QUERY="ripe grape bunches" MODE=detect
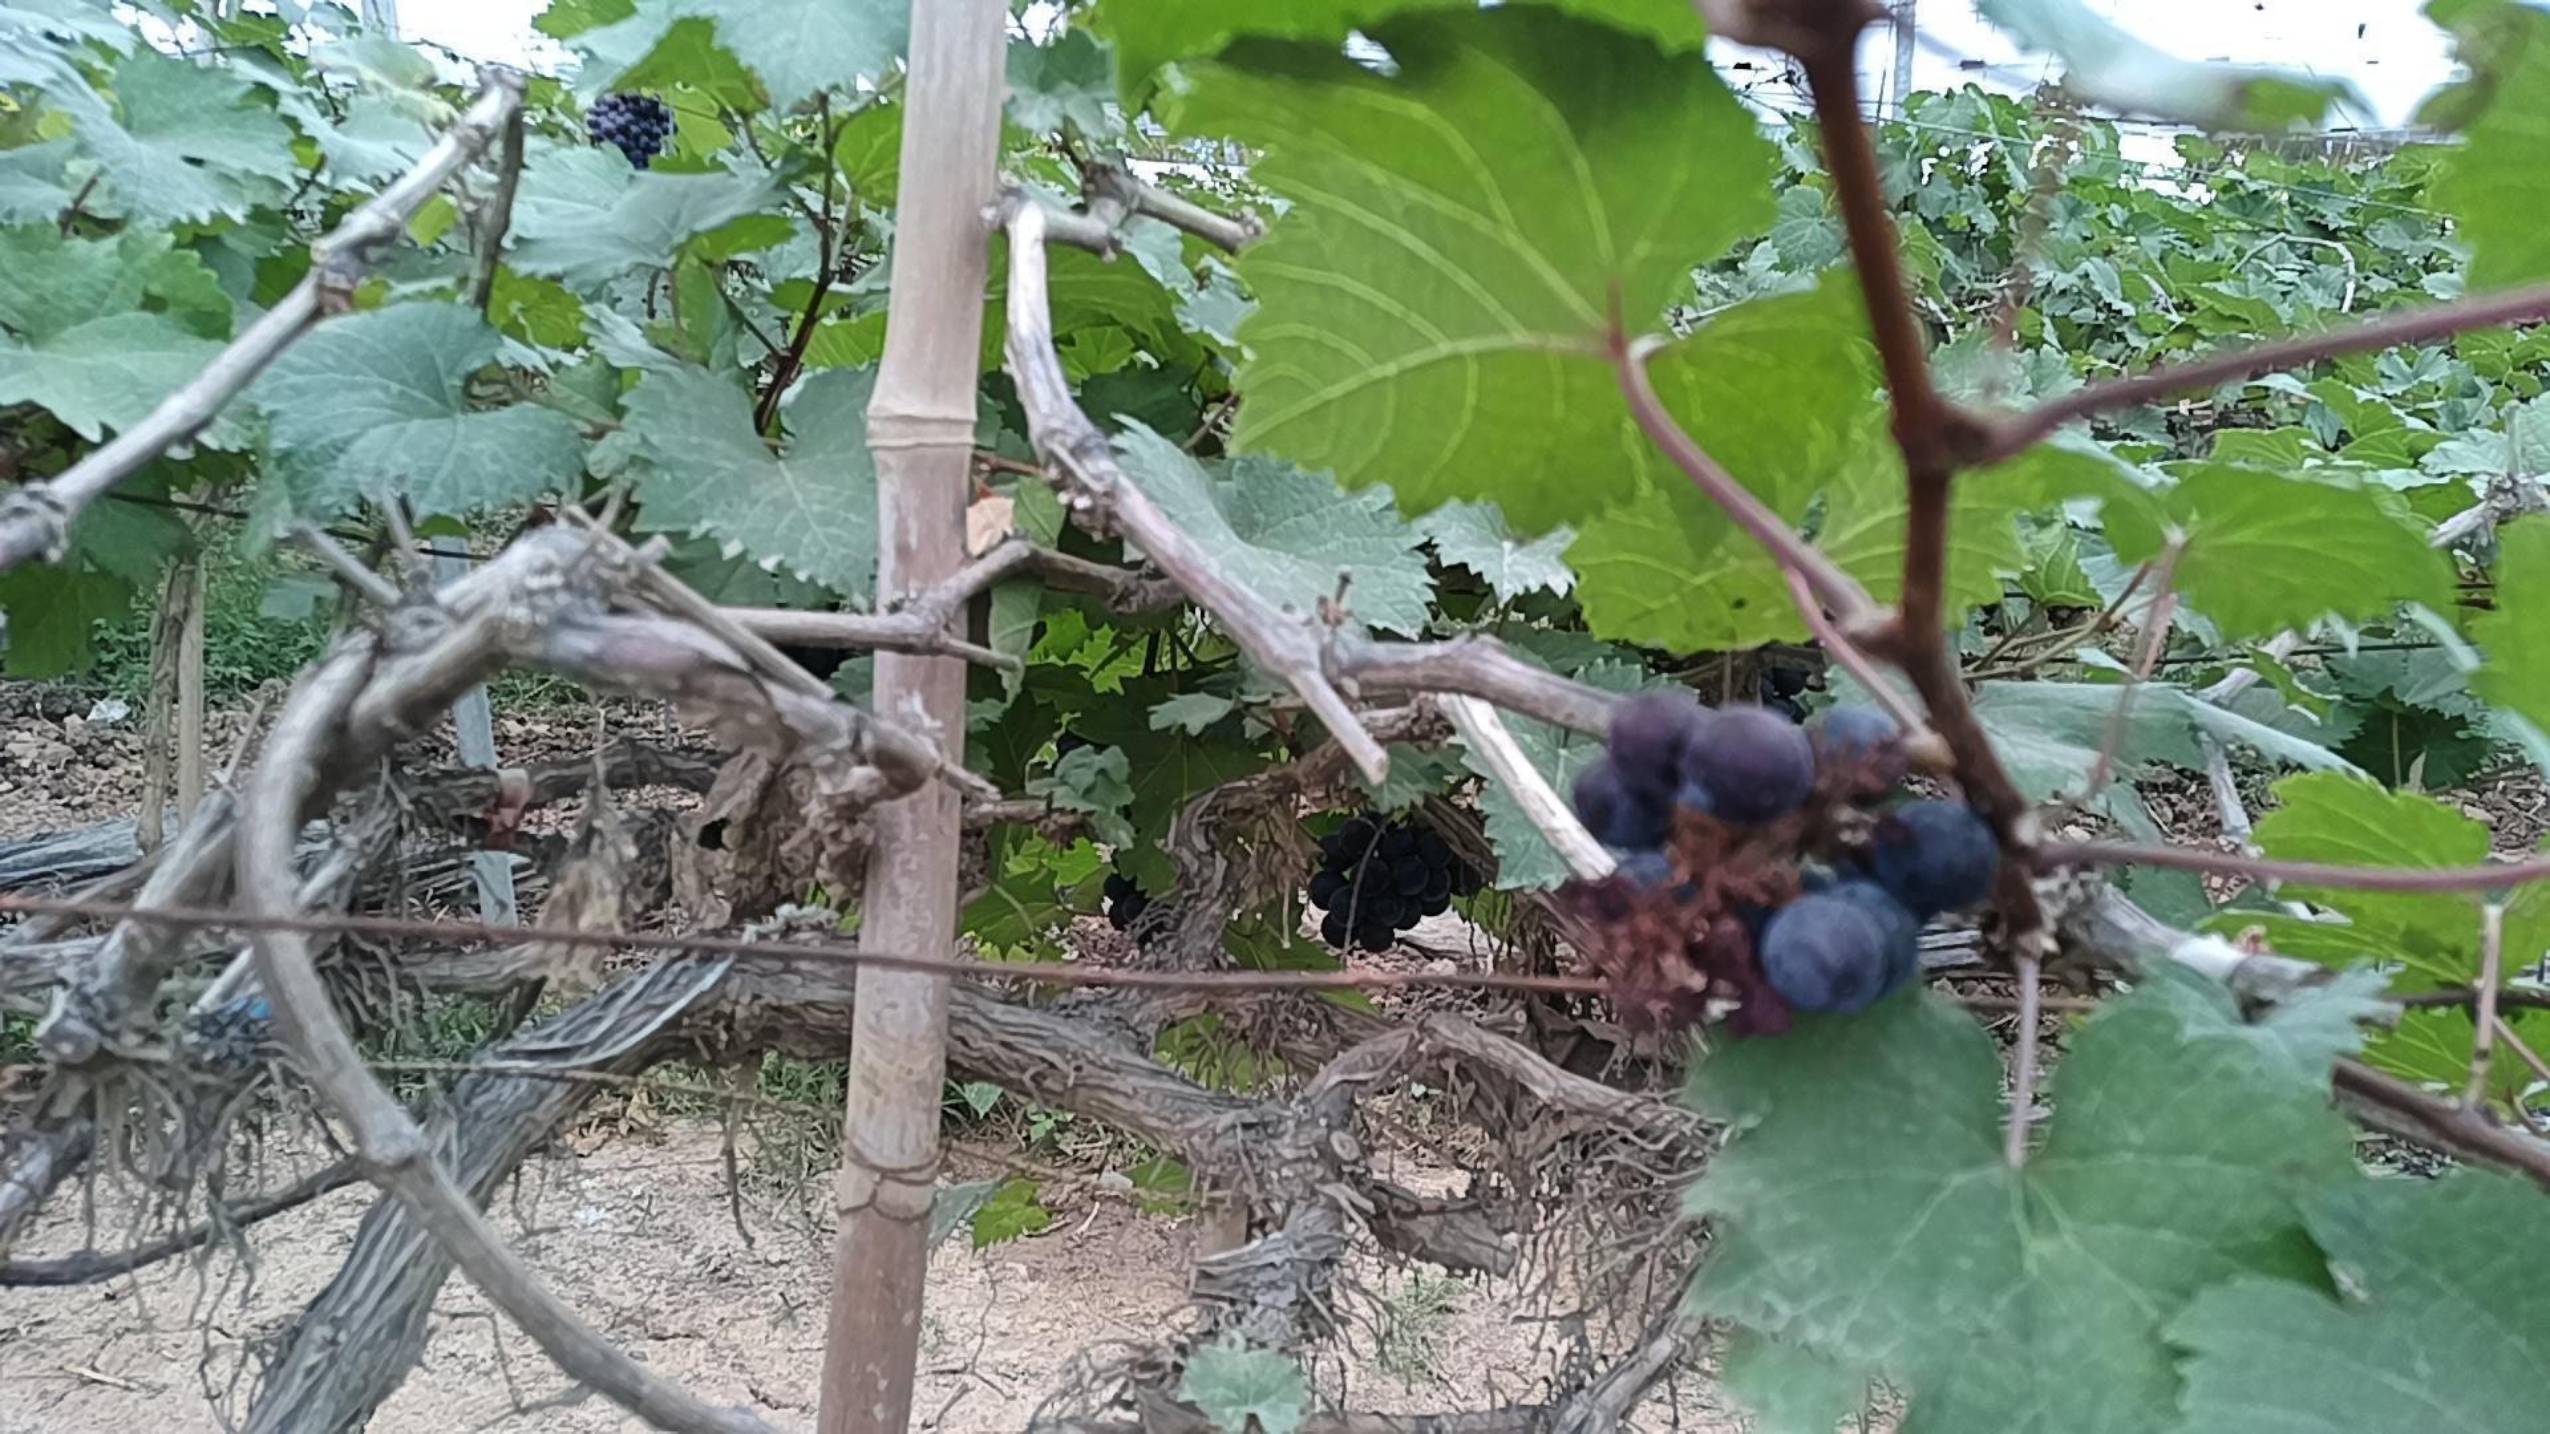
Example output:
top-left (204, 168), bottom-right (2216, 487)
top-left (1561, 692), bottom-right (1995, 1034)
top-left (586, 92), bottom-right (677, 170)
top-left (1303, 807), bottom-right (1486, 953)
top-left (1097, 863), bottom-right (1177, 957)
